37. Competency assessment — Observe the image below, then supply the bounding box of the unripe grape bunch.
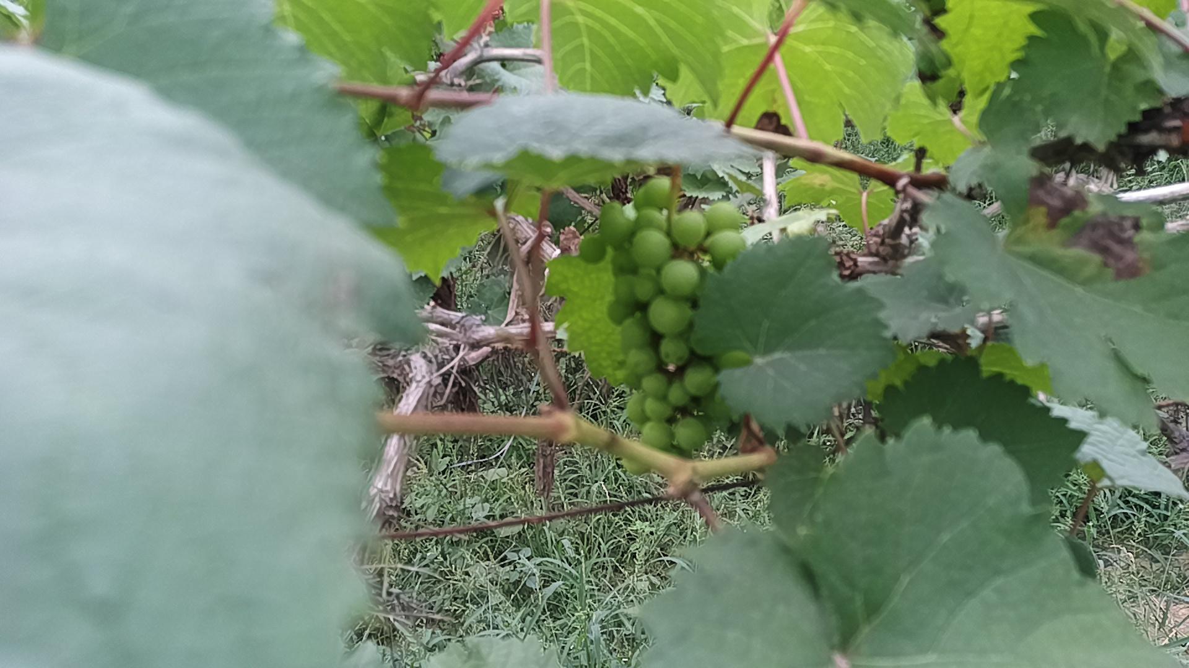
[599,176,747,474]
